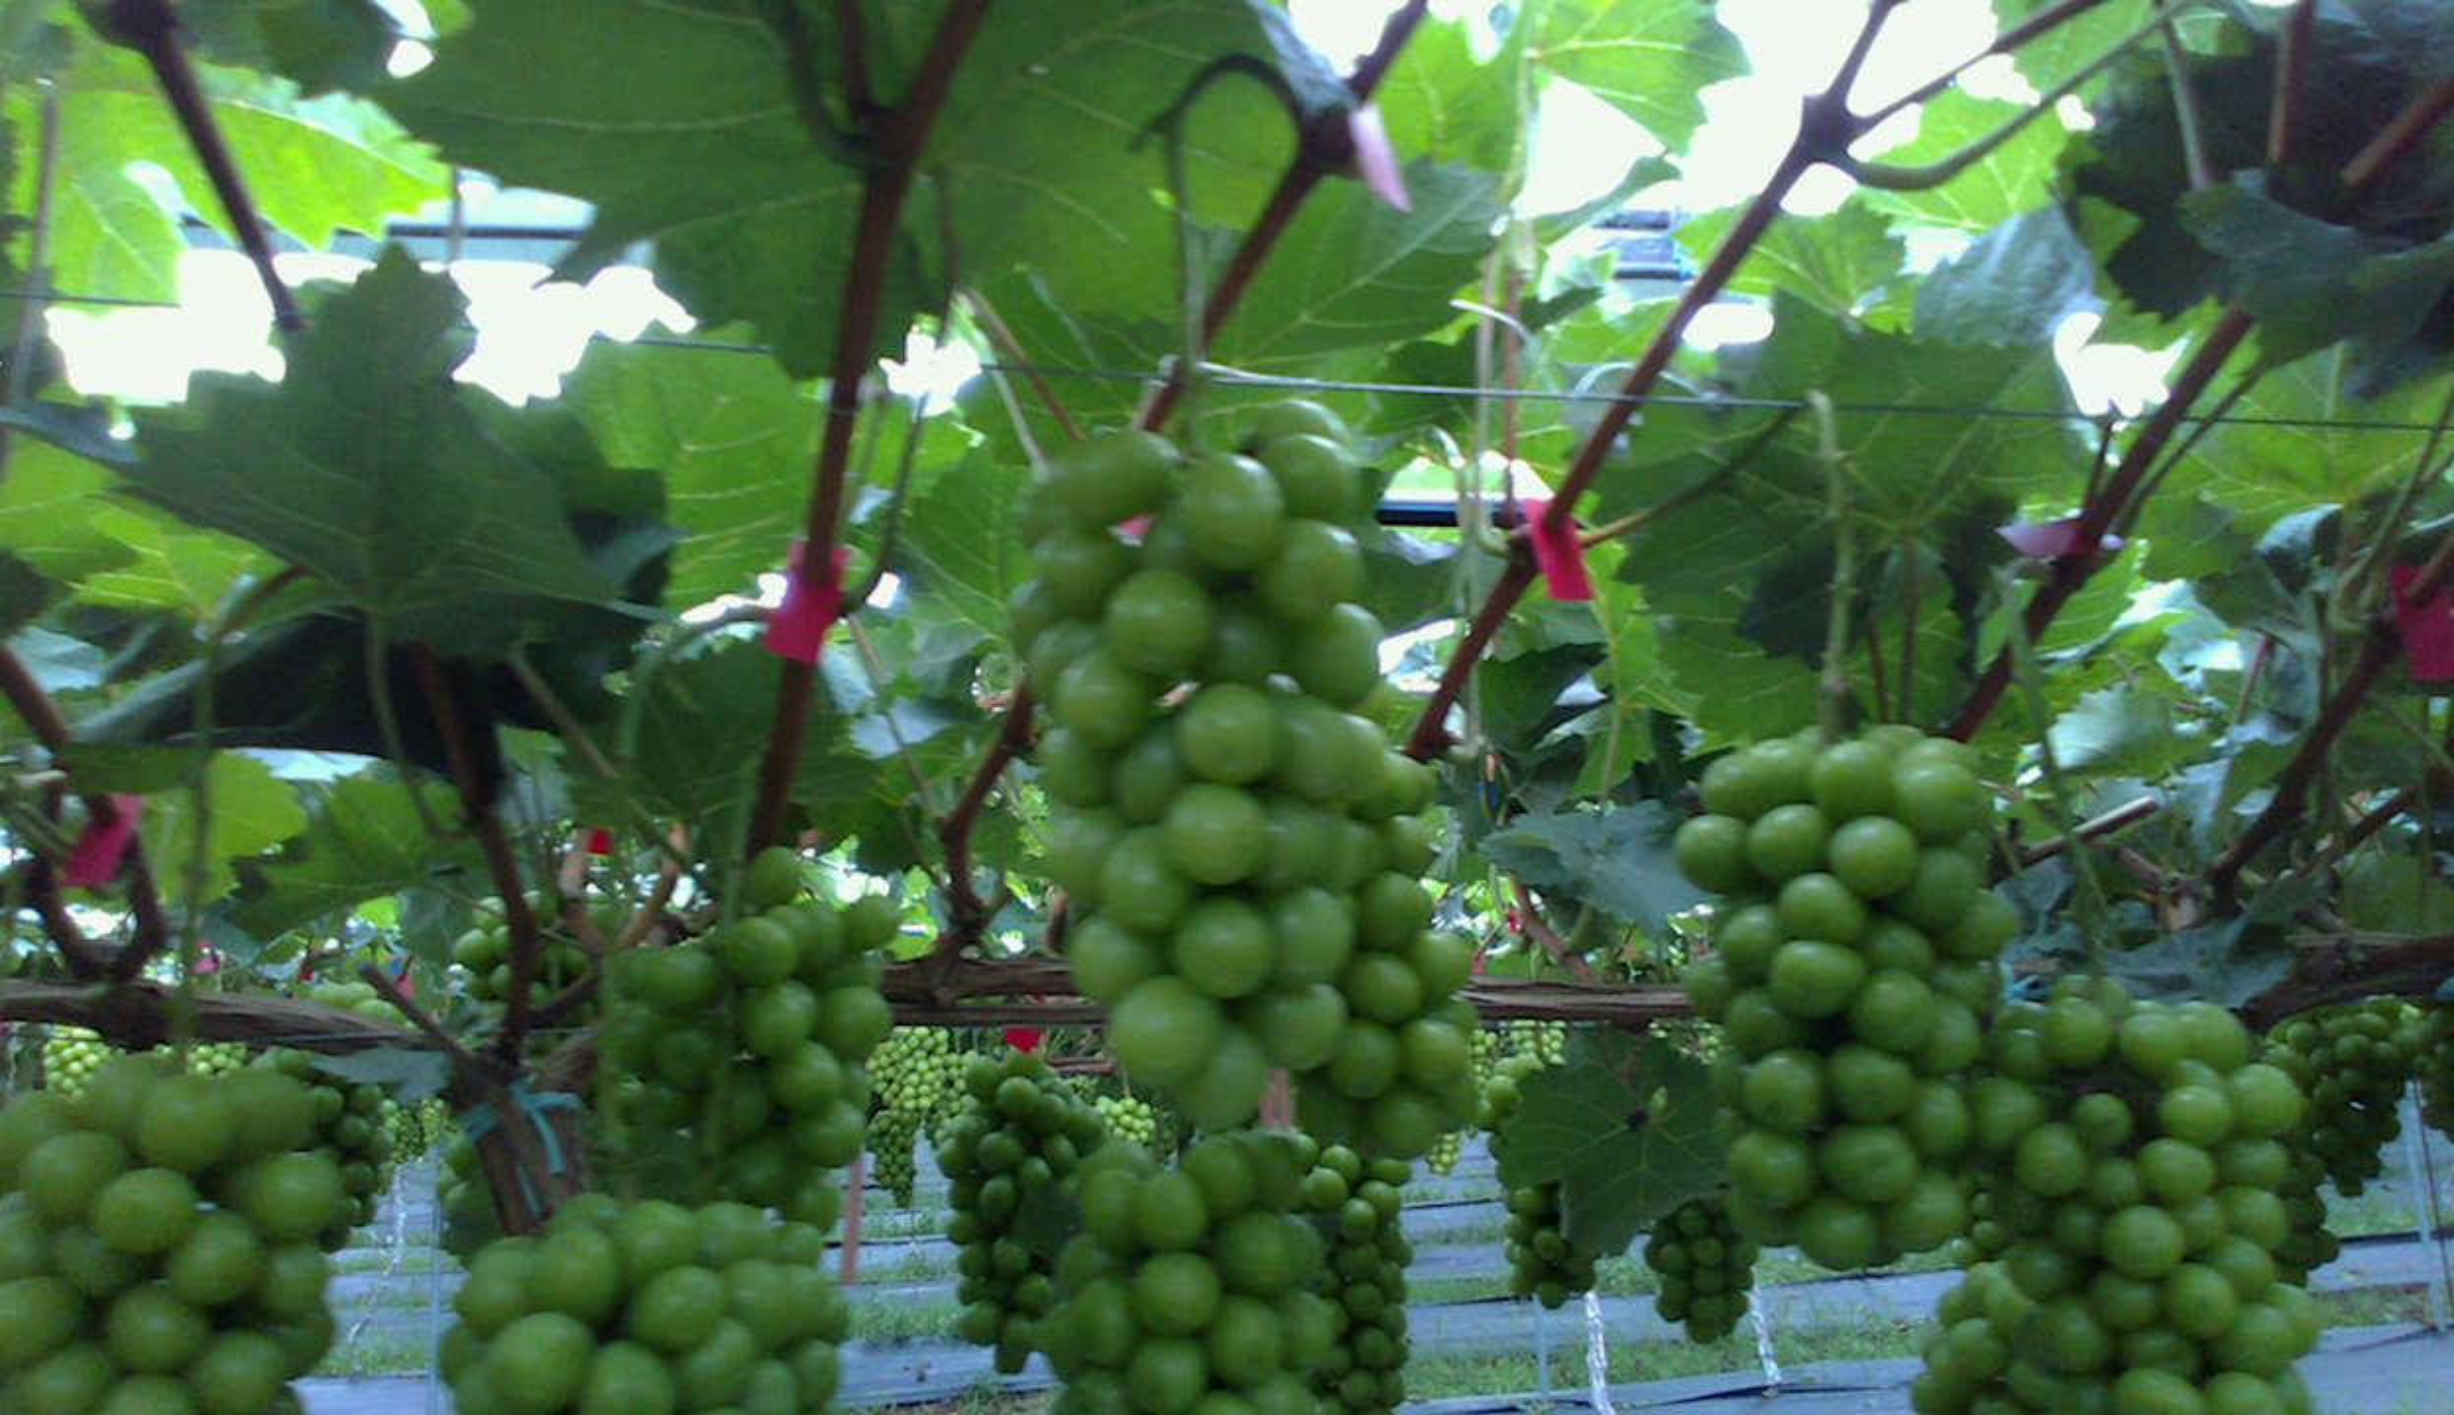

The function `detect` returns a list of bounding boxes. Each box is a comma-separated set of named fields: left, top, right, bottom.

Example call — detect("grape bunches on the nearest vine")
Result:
left=1009, top=401, right=1380, bottom=1132
left=1974, top=977, right=2320, bottom=1413
left=0, top=1051, right=338, bottom=1413
left=1042, top=1134, right=1345, bottom=1413
left=621, top=851, right=903, bottom=1234
left=1296, top=715, right=1483, bottom=1156
left=1673, top=723, right=2019, bottom=1273
left=438, top=1191, right=851, bottom=1413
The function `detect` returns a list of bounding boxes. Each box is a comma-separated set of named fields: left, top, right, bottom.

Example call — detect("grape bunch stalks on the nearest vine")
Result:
left=1994, top=558, right=2108, bottom=979
left=722, top=749, right=765, bottom=926
left=604, top=951, right=633, bottom=1199
left=1583, top=393, right=1854, bottom=743
left=173, top=564, right=303, bottom=1061
left=1176, top=1118, right=1194, bottom=1150
left=1139, top=53, right=1294, bottom=448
